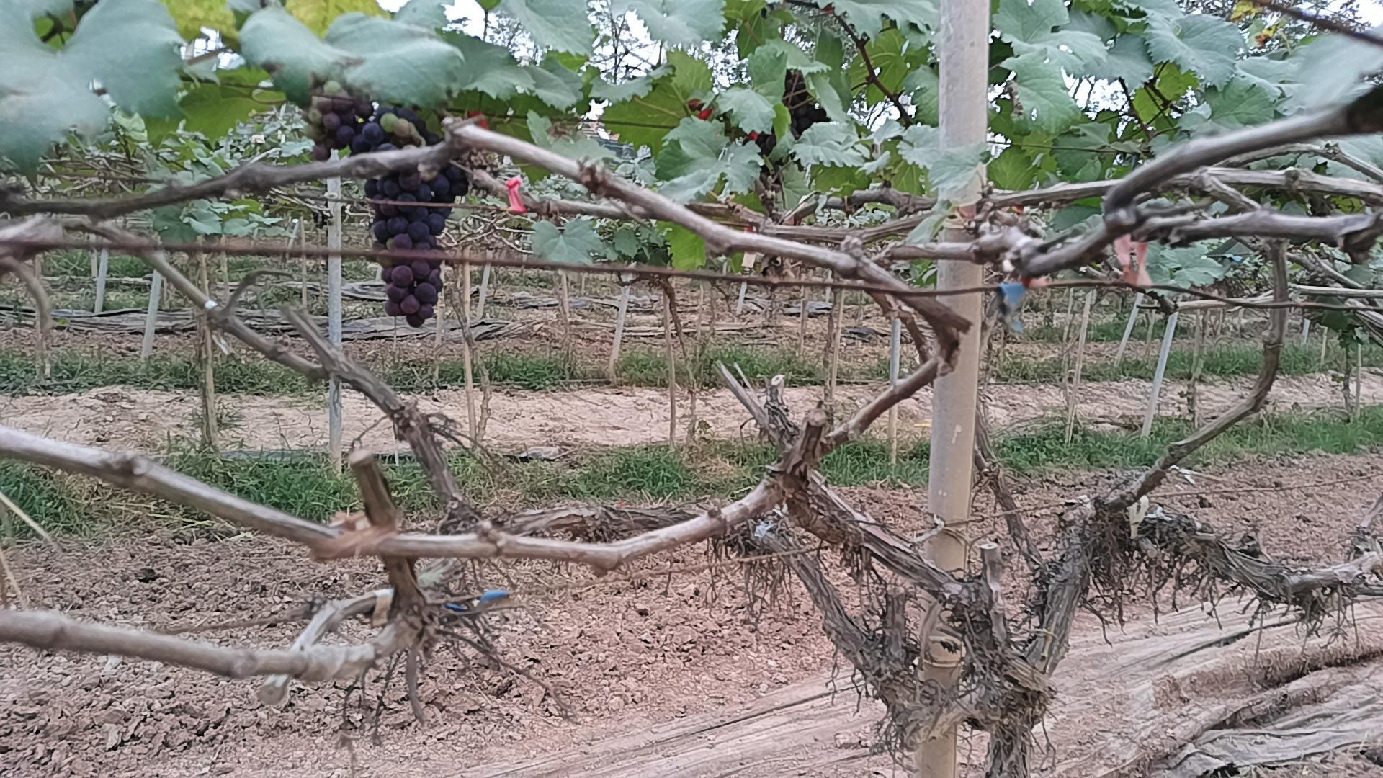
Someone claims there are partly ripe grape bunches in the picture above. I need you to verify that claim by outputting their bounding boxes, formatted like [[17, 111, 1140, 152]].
[[348, 102, 470, 329], [303, 59, 375, 162]]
